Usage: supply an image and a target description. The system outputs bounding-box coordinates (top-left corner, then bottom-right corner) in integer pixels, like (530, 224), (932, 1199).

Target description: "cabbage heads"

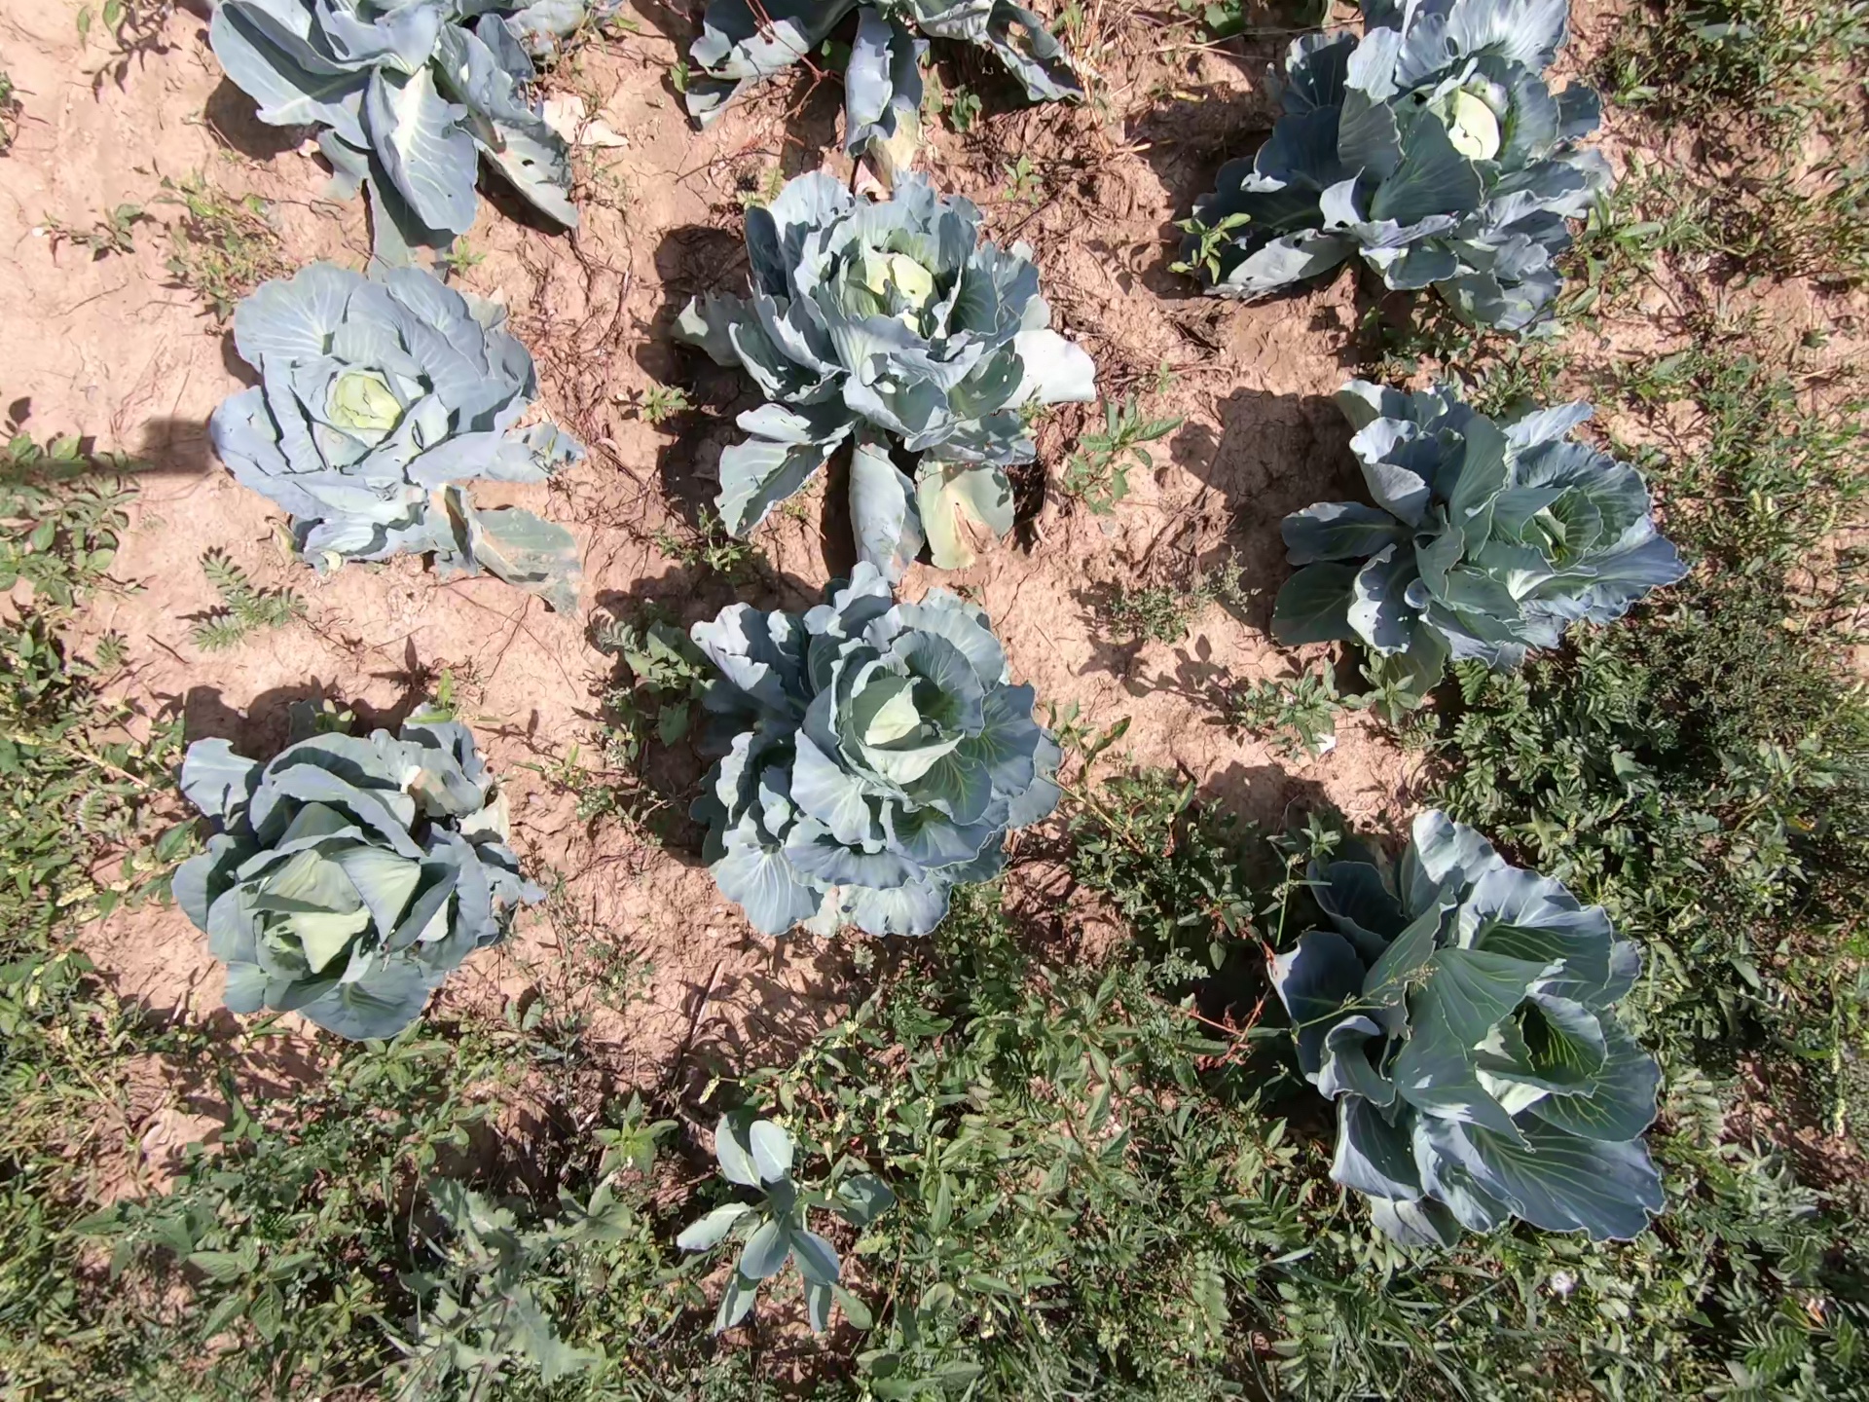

(1388, 84), (1502, 191)
(1481, 490), (1561, 573)
(264, 834), (401, 958)
(841, 245), (939, 371)
(848, 682), (920, 770)
(321, 368), (440, 478)
(1416, 994), (1539, 1123)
